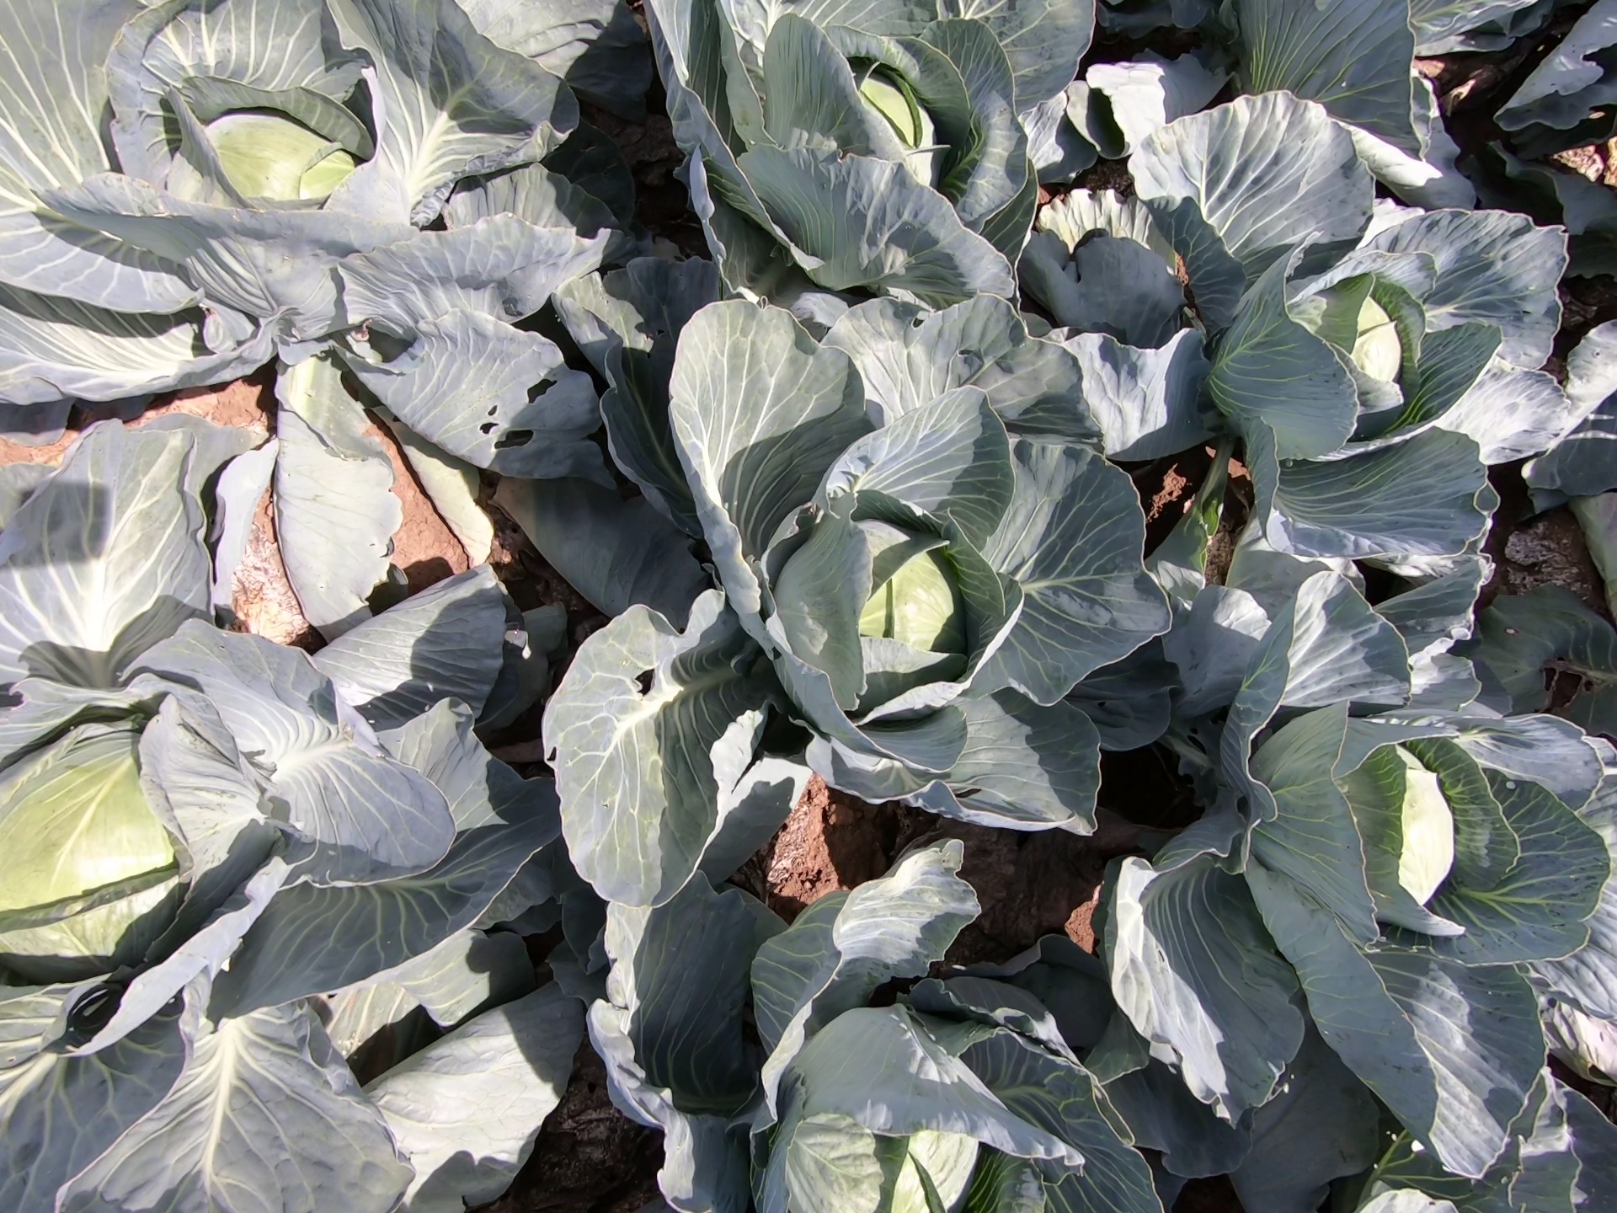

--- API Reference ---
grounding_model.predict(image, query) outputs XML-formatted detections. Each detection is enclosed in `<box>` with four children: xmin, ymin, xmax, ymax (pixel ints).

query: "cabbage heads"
<box><xmin>802</xmin><ymin>65</ymin><xmax>943</xmax><ymax>204</ymax></box>
<box><xmin>4</xmin><ymin>720</ymin><xmax>243</xmax><ymax>992</ymax></box>
<box><xmin>164</xmin><ymin>104</ymin><xmax>382</xmax><ymax>286</ymax></box>
<box><xmin>1260</xmin><ymin>727</ymin><xmax>1457</xmax><ymax>921</ymax></box>
<box><xmin>781</xmin><ymin>521</ymin><xmax>969</xmax><ymax>710</ymax></box>
<box><xmin>760</xmin><ymin>1013</ymin><xmax>979</xmax><ymax>1211</ymax></box>
<box><xmin>1256</xmin><ymin>280</ymin><xmax>1410</xmax><ymax>423</ymax></box>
